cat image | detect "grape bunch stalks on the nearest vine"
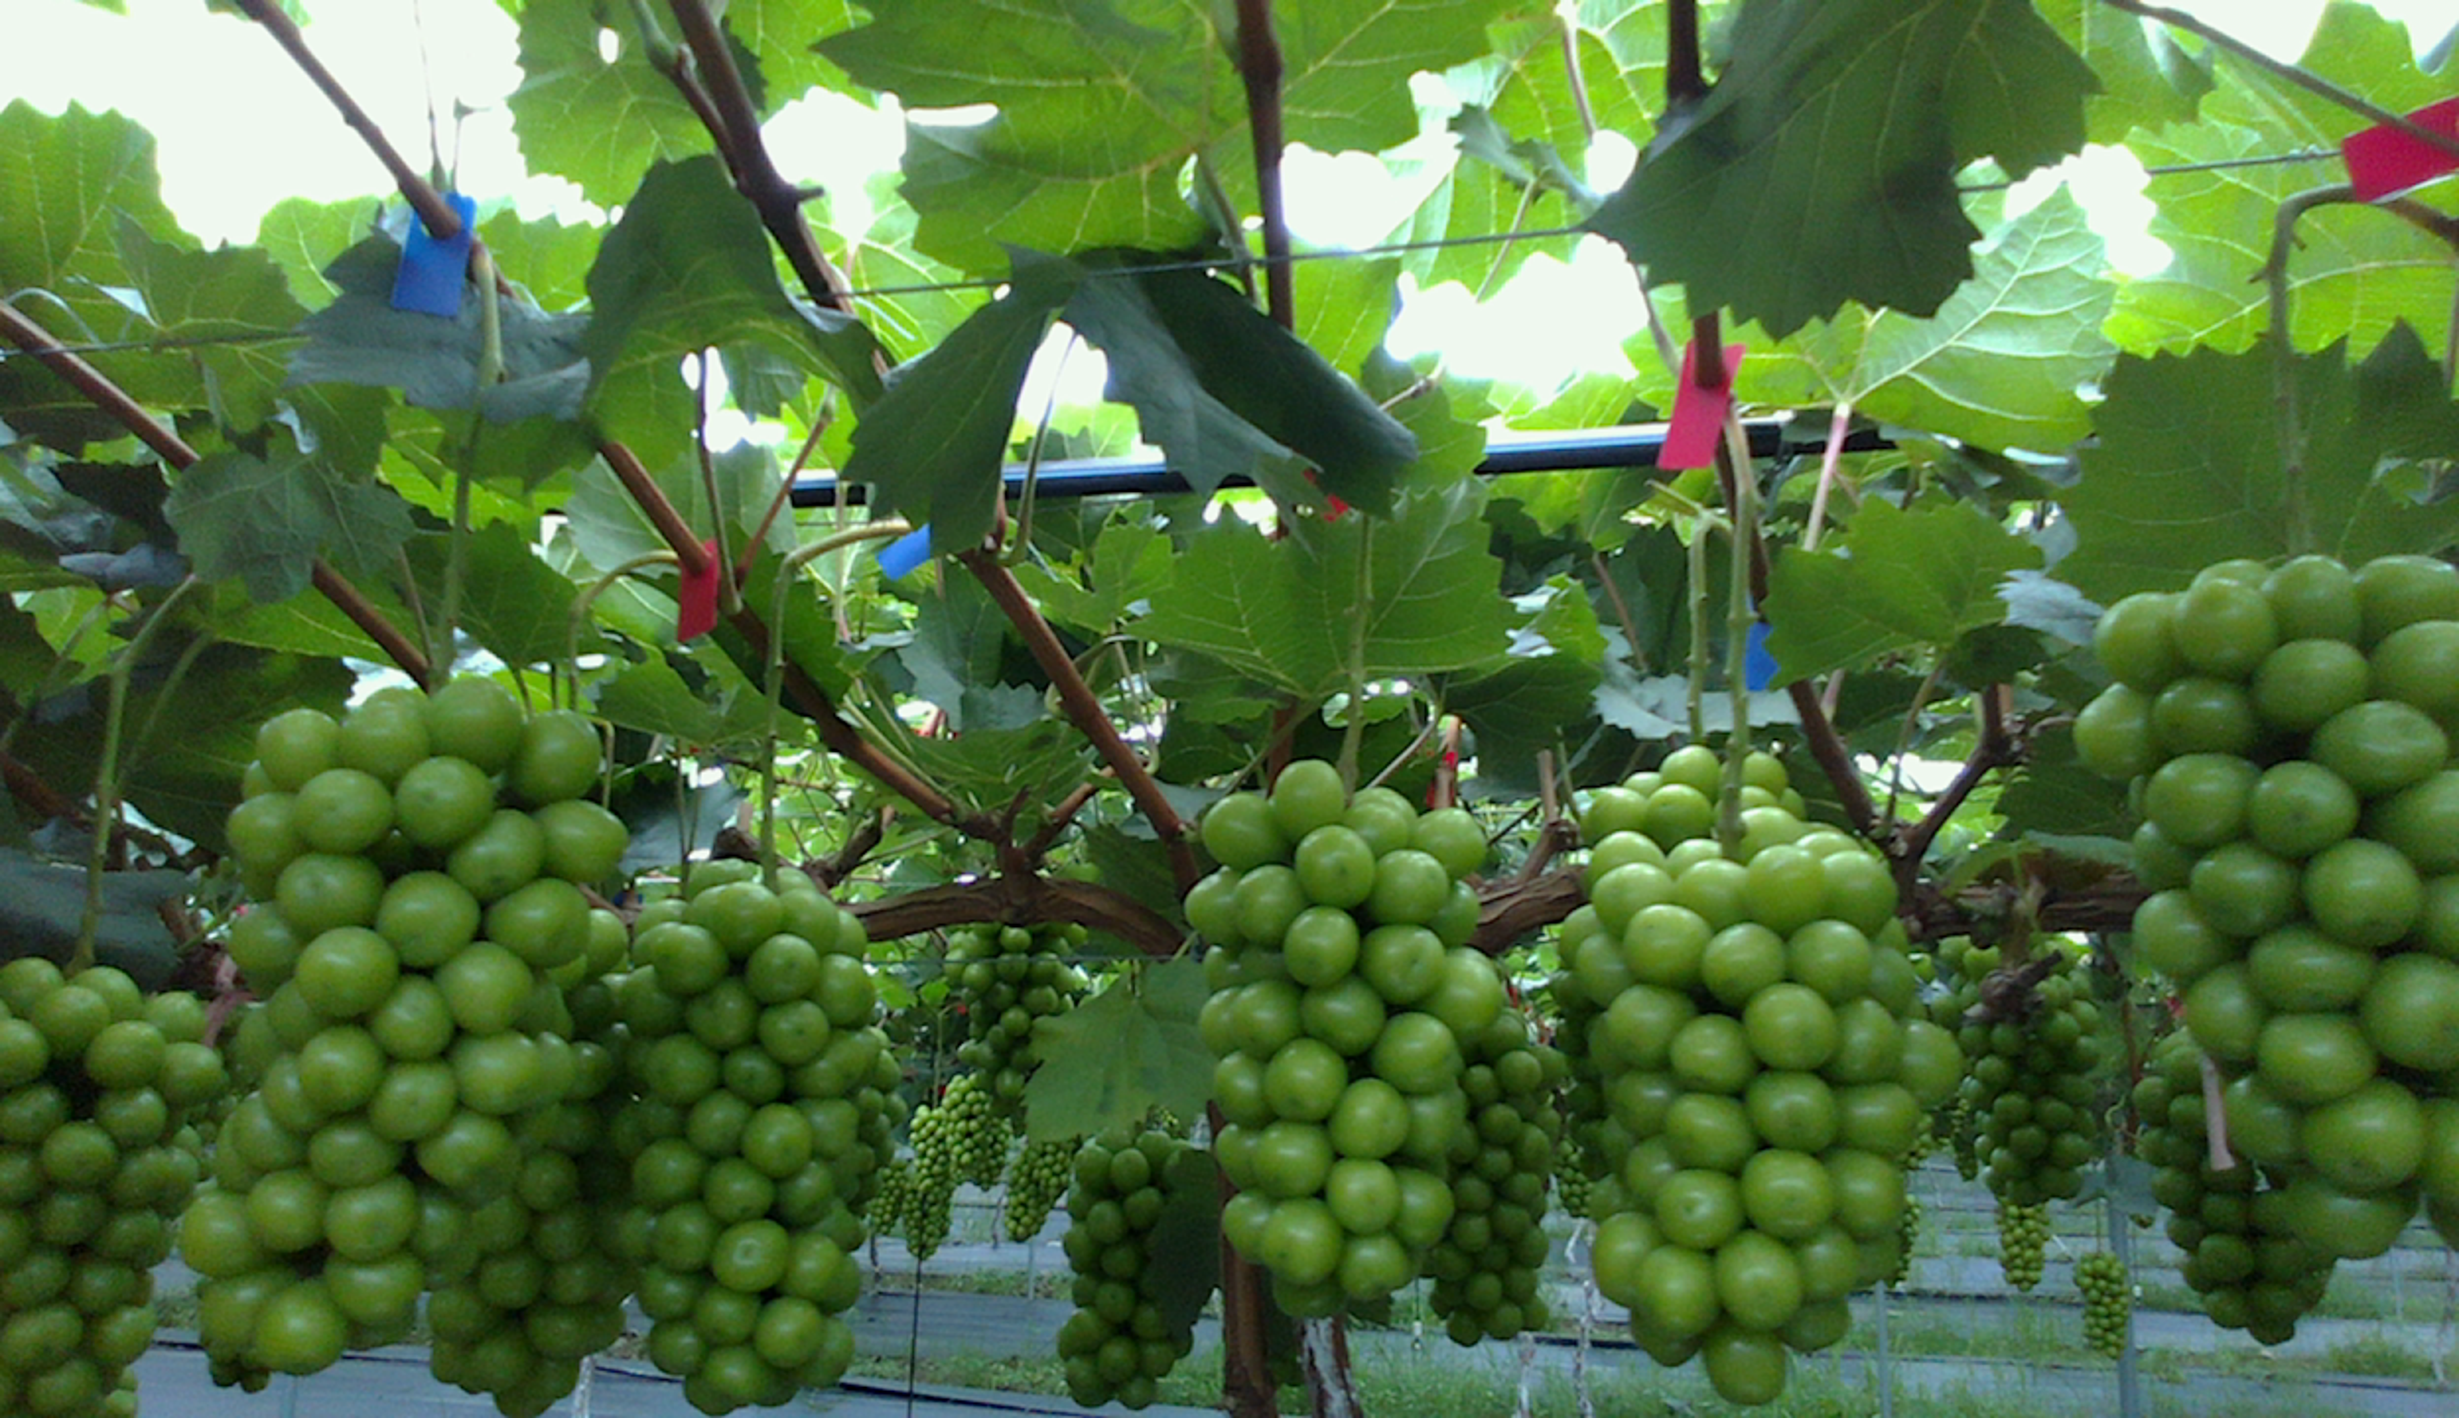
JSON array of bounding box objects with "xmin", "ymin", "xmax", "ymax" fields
[
  {"xmin": 430, "ymin": 242, "xmax": 506, "ymax": 703},
  {"xmin": 63, "ymin": 573, "xmax": 199, "ymax": 979},
  {"xmin": 1338, "ymin": 512, "xmax": 1373, "ymax": 809},
  {"xmin": 759, "ymin": 514, "xmax": 904, "ymax": 892},
  {"xmin": 1687, "ymin": 516, "xmax": 1712, "ymax": 744},
  {"xmin": 2266, "ymin": 183, "xmax": 2353, "ymax": 559},
  {"xmin": 1718, "ymin": 410, "xmax": 1758, "ymax": 861}
]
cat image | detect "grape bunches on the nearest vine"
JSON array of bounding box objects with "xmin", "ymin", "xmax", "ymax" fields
[
  {"xmin": 0, "ymin": 955, "xmax": 225, "ymax": 1416},
  {"xmin": 426, "ymin": 910, "xmax": 636, "ymax": 1416},
  {"xmin": 1586, "ymin": 744, "xmax": 1807, "ymax": 859},
  {"xmin": 1184, "ymin": 760, "xmax": 1505, "ymax": 1320},
  {"xmin": 611, "ymin": 857, "xmax": 877, "ymax": 1416},
  {"xmin": 1559, "ymin": 806, "xmax": 1966, "ymax": 1406},
  {"xmin": 179, "ymin": 674, "xmax": 631, "ymax": 1375},
  {"xmin": 2073, "ymin": 553, "xmax": 2457, "ymax": 1258}
]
